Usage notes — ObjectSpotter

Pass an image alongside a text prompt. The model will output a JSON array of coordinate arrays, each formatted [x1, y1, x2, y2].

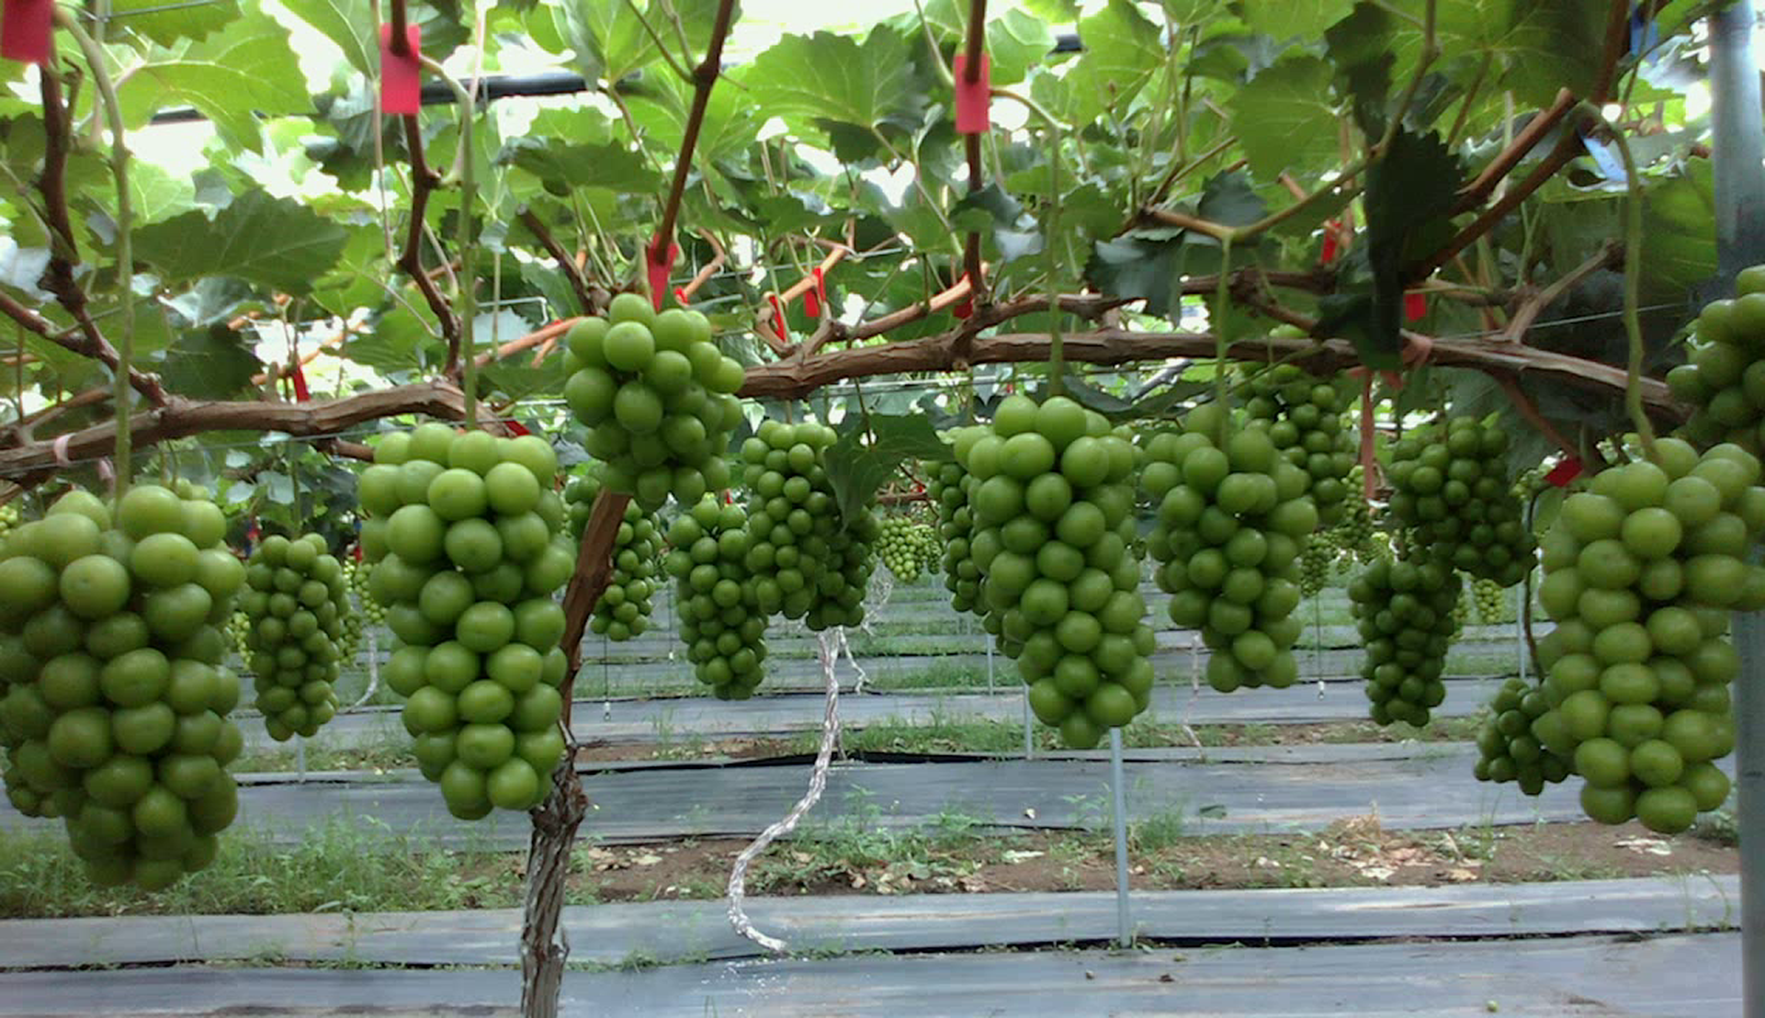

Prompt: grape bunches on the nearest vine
[[1532, 437, 1764, 833], [561, 293, 745, 513], [1140, 404, 1320, 694], [359, 421, 577, 820], [0, 484, 247, 892], [952, 394, 1155, 751]]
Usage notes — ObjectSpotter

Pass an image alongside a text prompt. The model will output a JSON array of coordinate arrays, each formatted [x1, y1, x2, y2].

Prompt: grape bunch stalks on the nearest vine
[[993, 88, 1064, 397], [1151, 209, 1233, 454], [1609, 124, 1659, 462], [634, 235, 655, 310], [57, 11, 137, 526], [420, 54, 477, 430]]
